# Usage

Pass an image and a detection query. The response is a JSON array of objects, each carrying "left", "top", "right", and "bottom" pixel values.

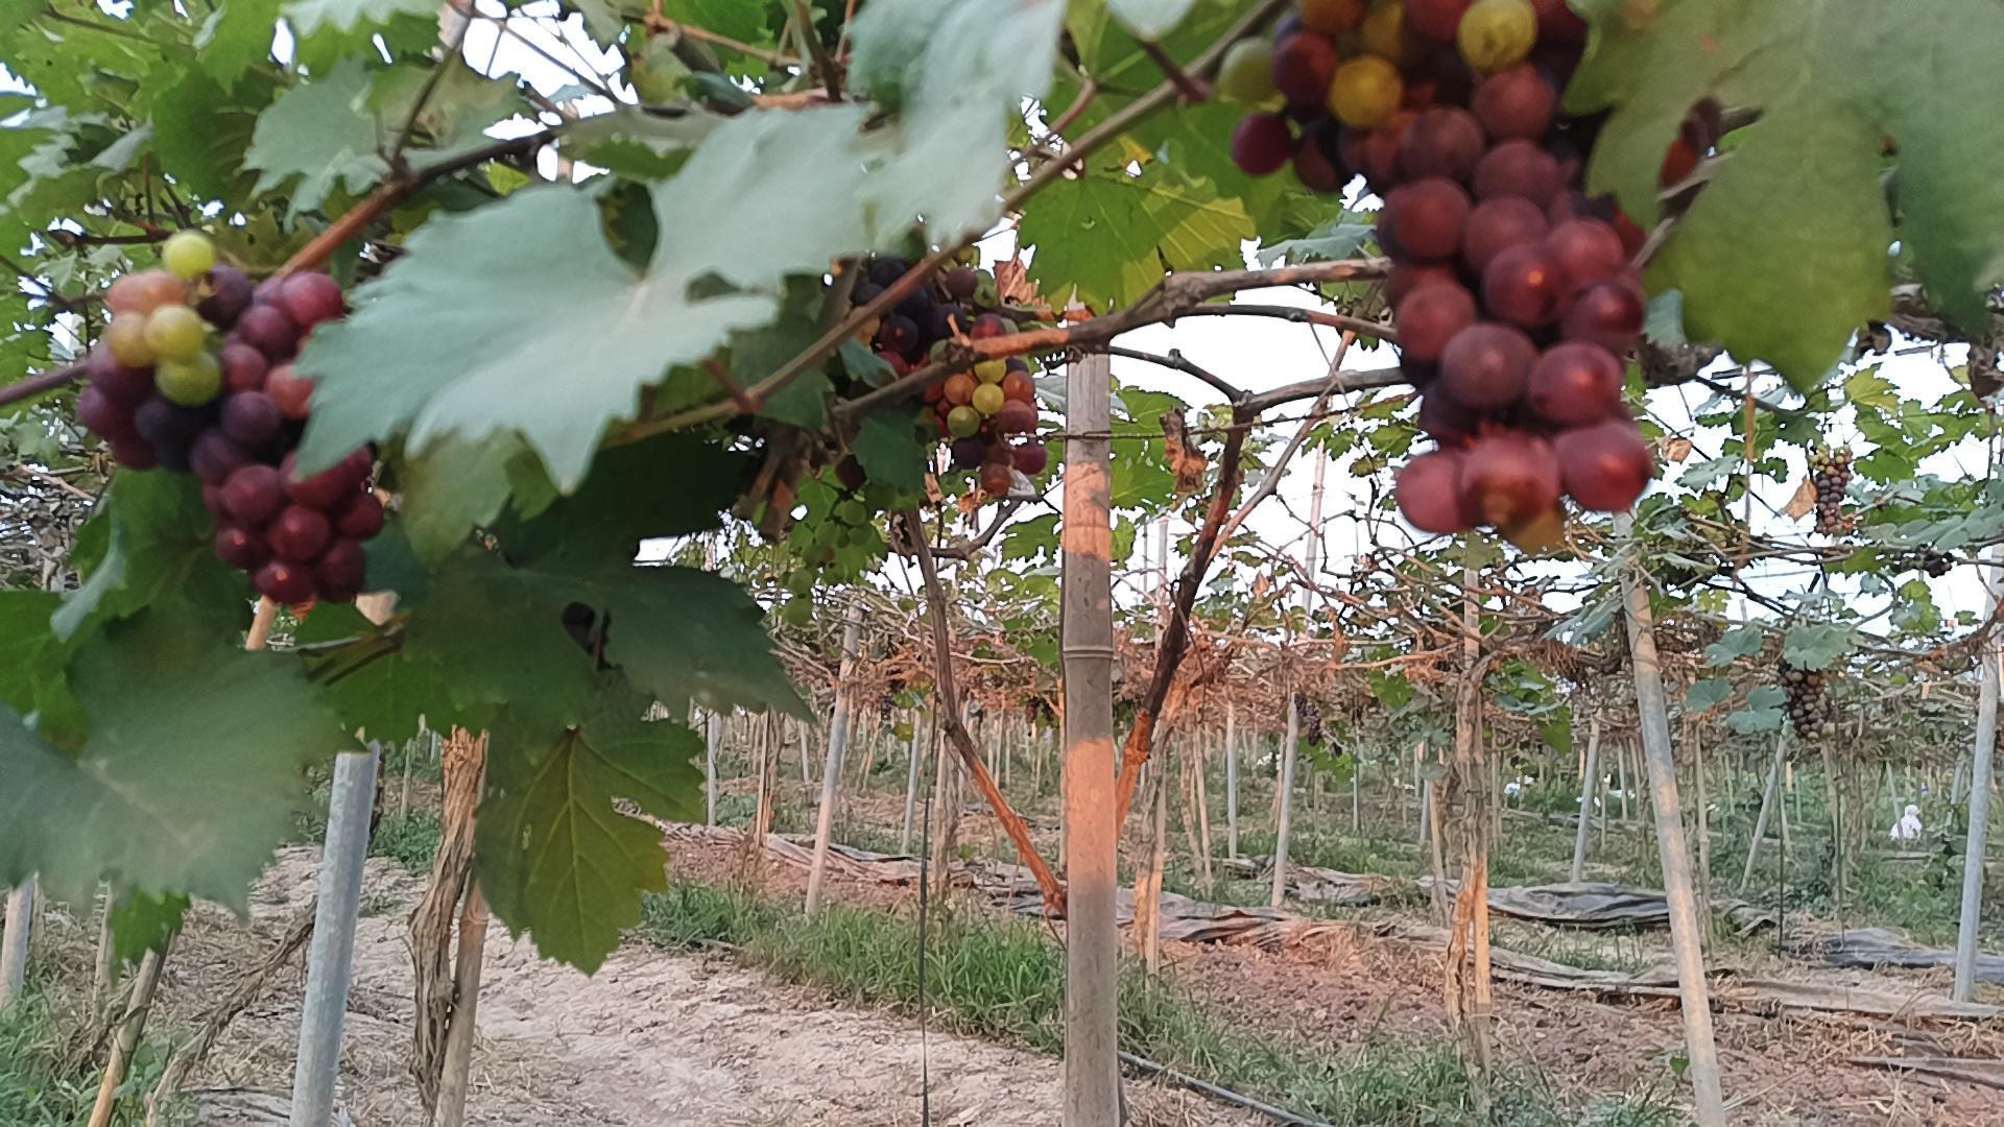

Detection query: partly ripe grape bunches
[
  {"left": 1811, "top": 446, "right": 1853, "bottom": 535},
  {"left": 851, "top": 257, "right": 1047, "bottom": 499},
  {"left": 785, "top": 455, "right": 905, "bottom": 625},
  {"left": 1780, "top": 661, "right": 1823, "bottom": 739},
  {"left": 1233, "top": 0, "right": 1652, "bottom": 551},
  {"left": 78, "top": 233, "right": 383, "bottom": 605}
]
